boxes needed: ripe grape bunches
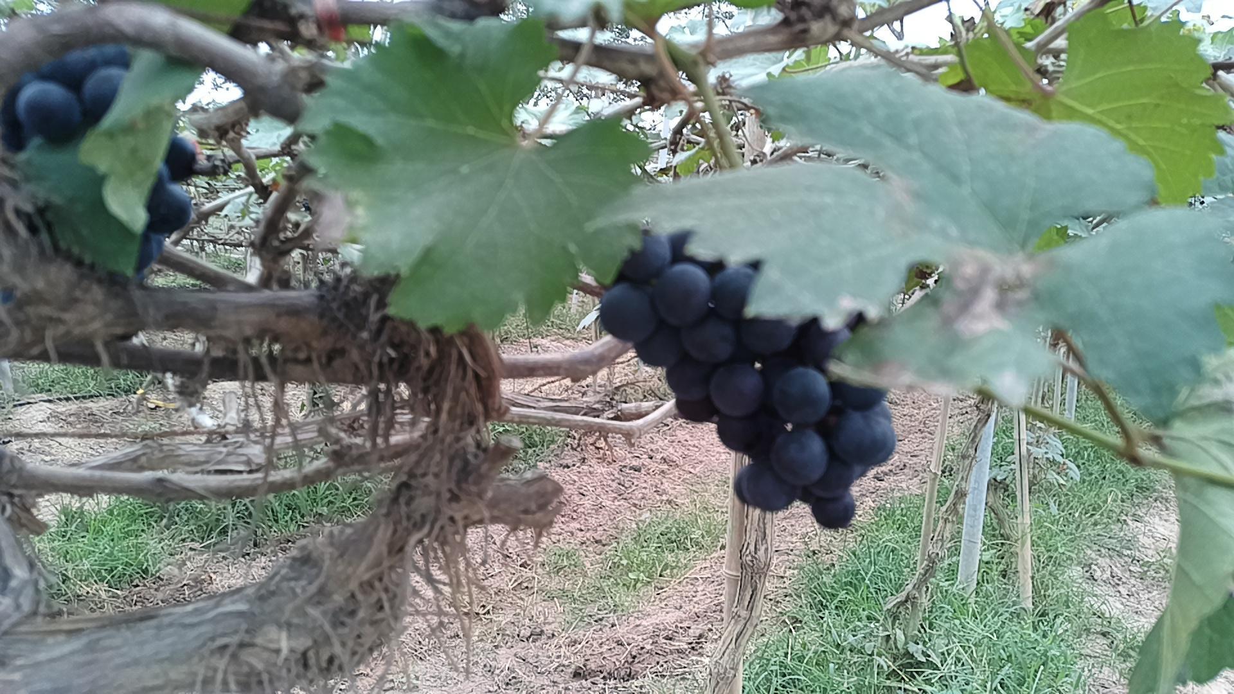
[600,233,895,528]
[0,42,197,280]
